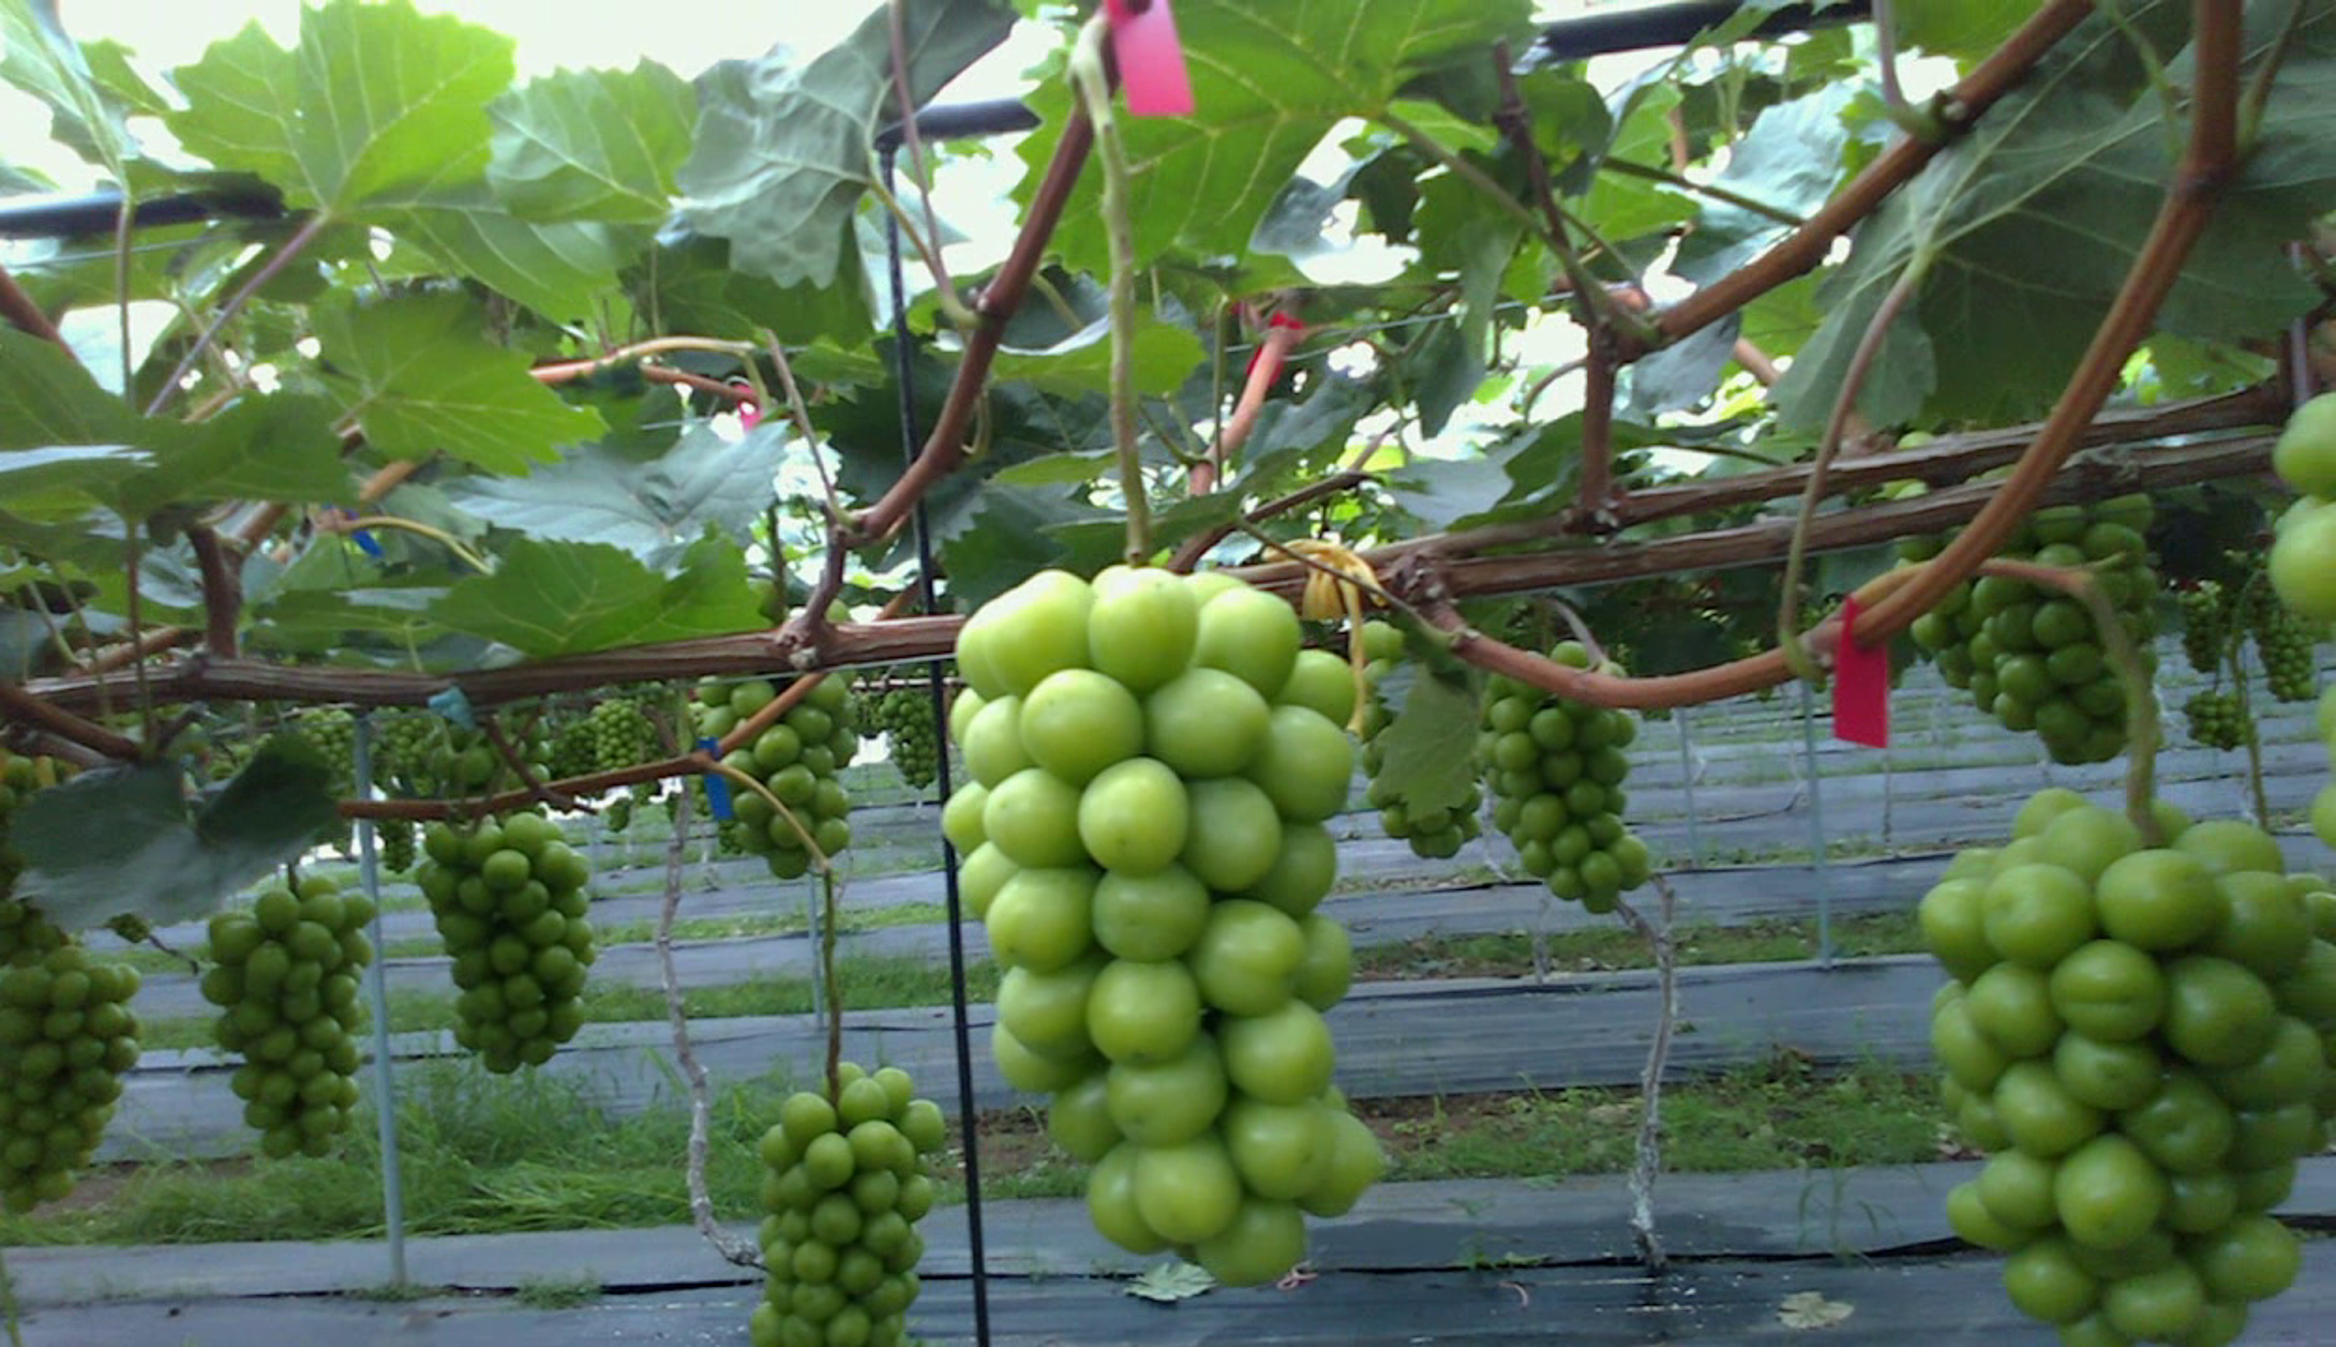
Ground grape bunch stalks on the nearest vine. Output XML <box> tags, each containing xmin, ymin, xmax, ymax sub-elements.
<box><xmin>1849</xmin><ymin>558</ymin><xmax>2169</xmax><ymax>846</ymax></box>
<box><xmin>1073</xmin><ymin>58</ymin><xmax>1147</xmax><ymax>561</ymax></box>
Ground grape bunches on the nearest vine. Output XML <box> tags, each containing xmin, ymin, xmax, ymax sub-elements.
<box><xmin>940</xmin><ymin>567</ymin><xmax>1385</xmax><ymax>1289</ymax></box>
<box><xmin>1911</xmin><ymin>782</ymin><xmax>2334</xmax><ymax>1340</ymax></box>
